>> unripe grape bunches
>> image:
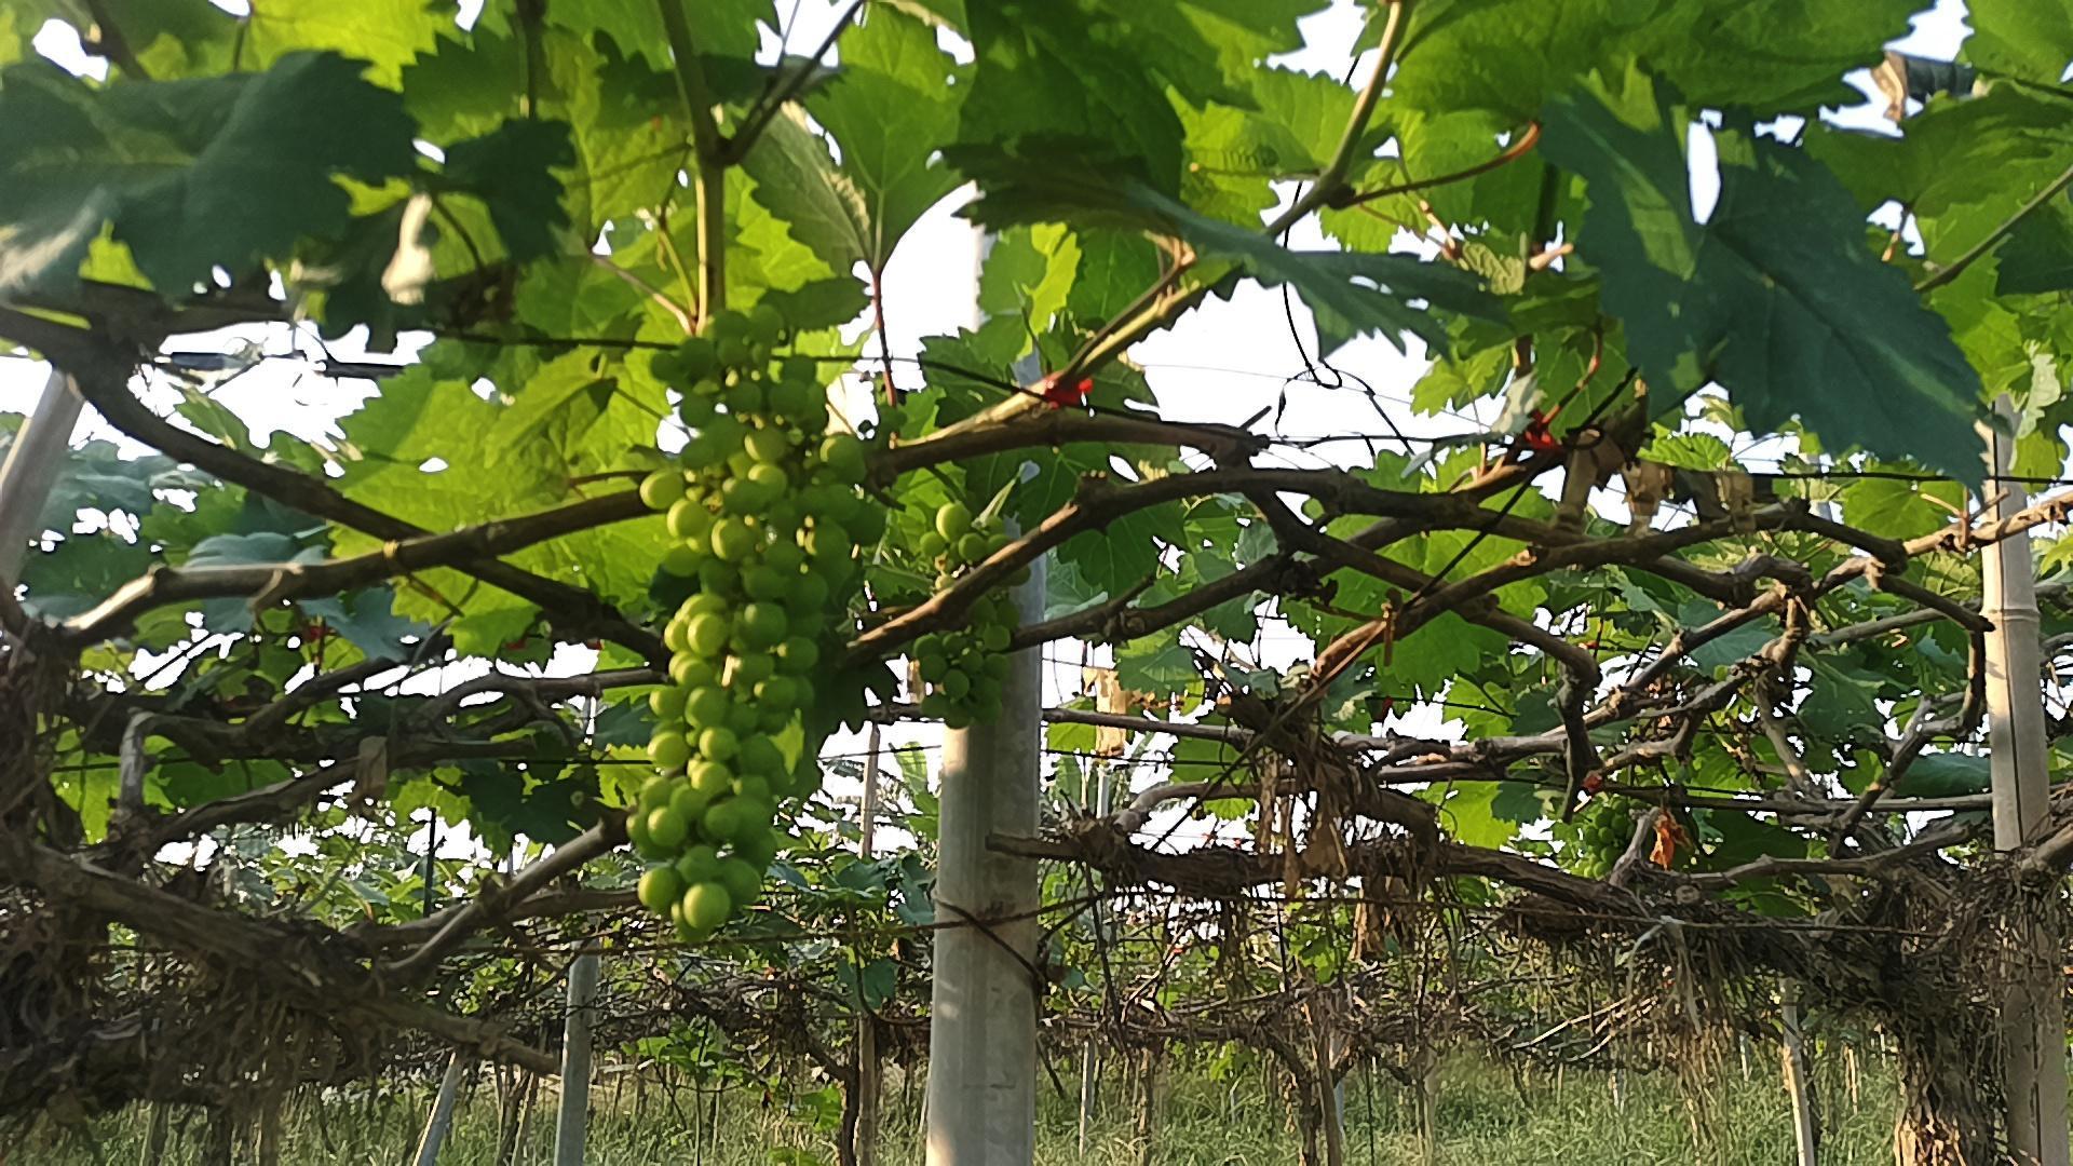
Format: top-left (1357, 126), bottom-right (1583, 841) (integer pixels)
top-left (912, 503), bottom-right (1030, 728)
top-left (626, 304), bottom-right (884, 941)
top-left (1573, 801), bottom-right (1636, 878)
